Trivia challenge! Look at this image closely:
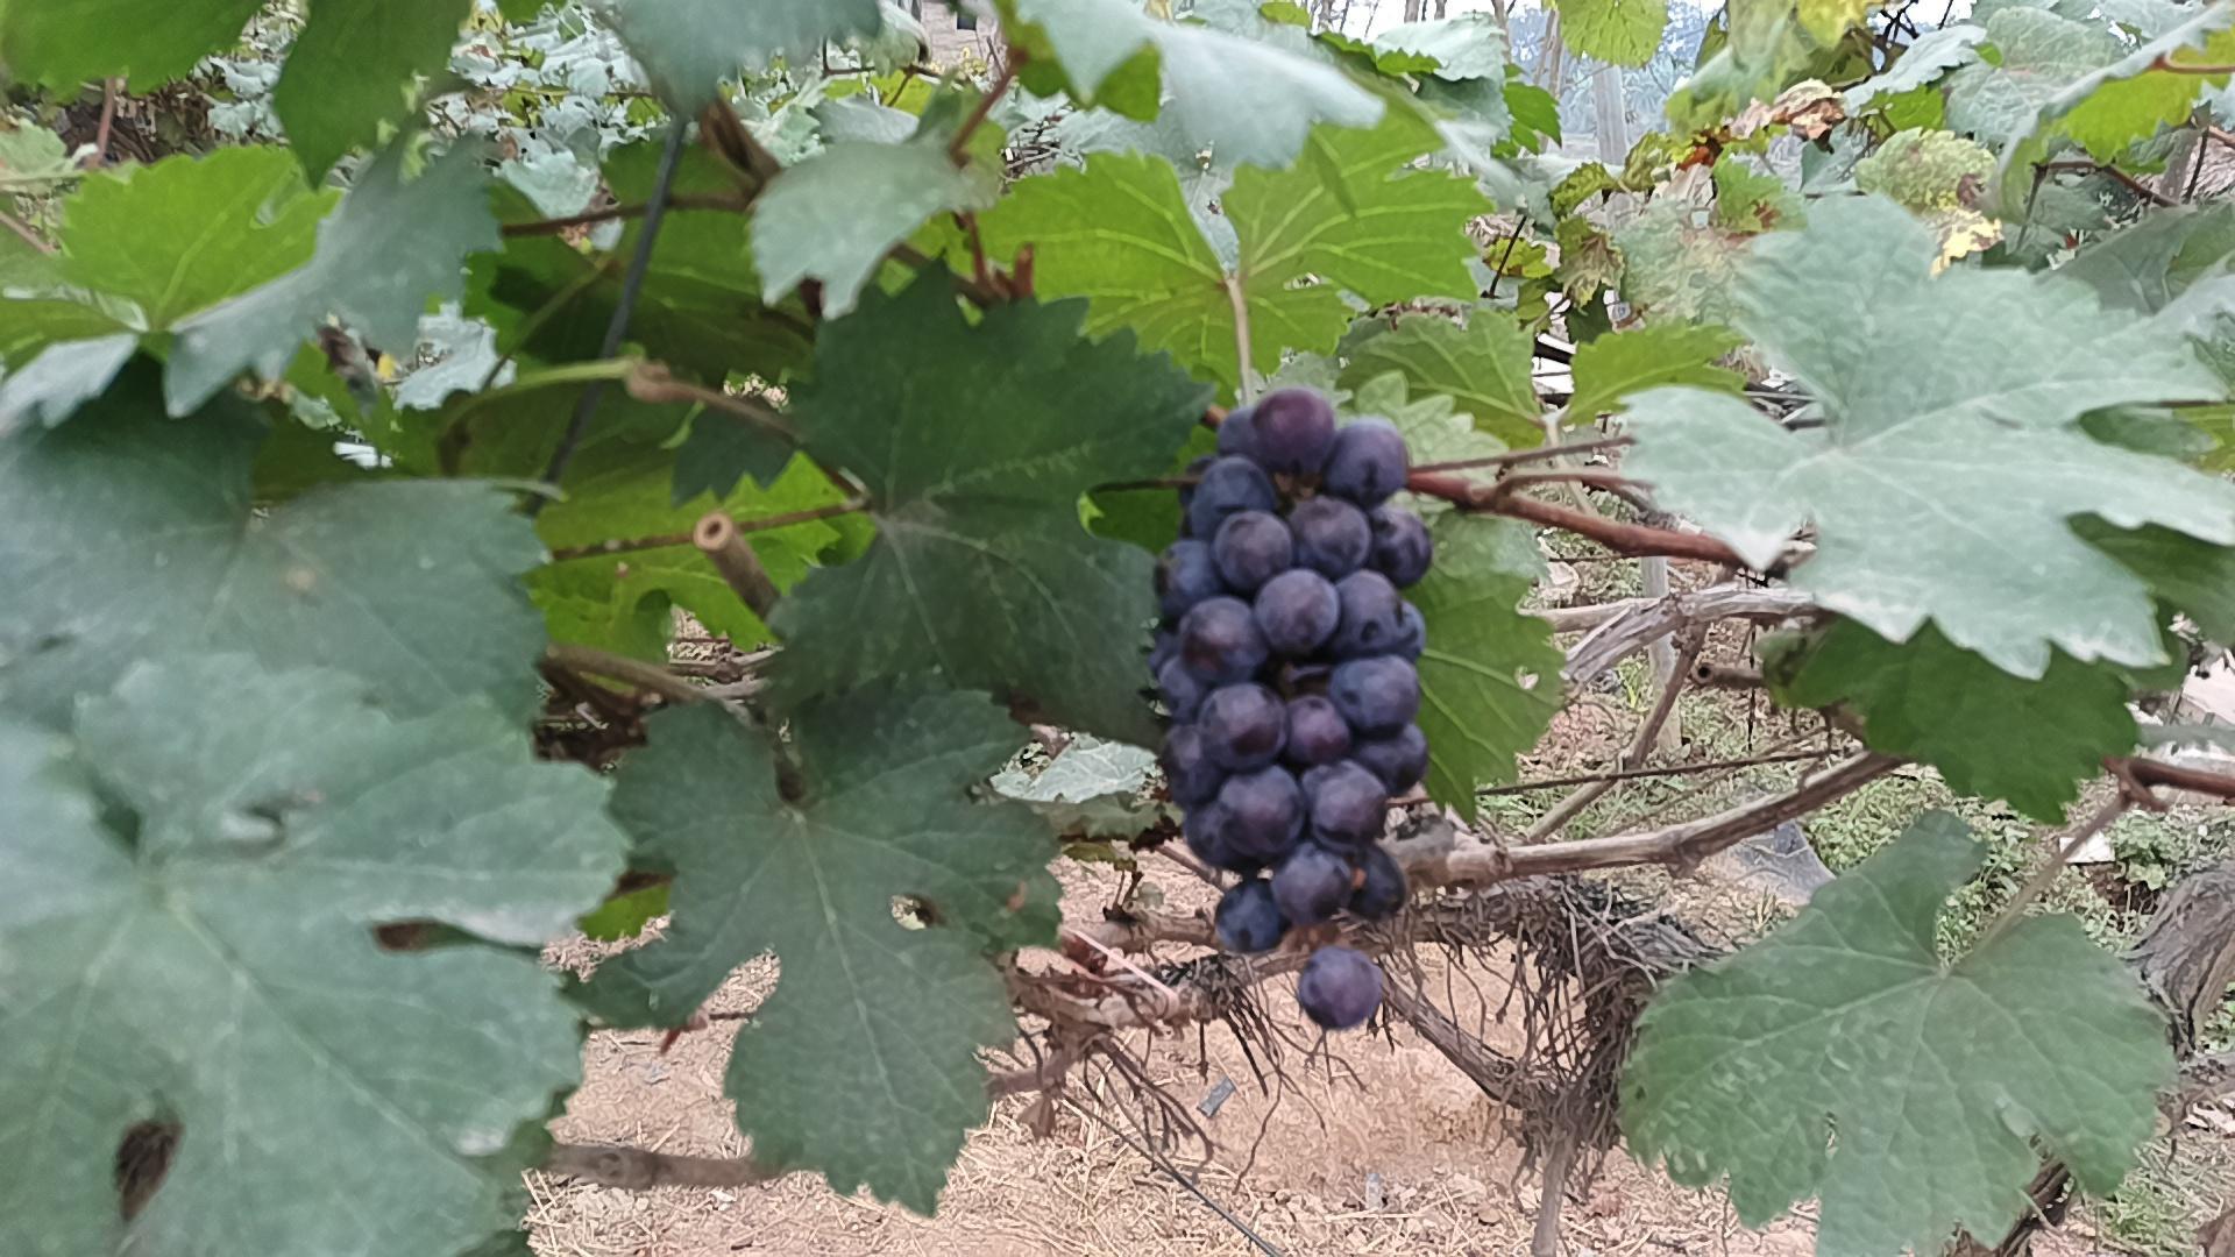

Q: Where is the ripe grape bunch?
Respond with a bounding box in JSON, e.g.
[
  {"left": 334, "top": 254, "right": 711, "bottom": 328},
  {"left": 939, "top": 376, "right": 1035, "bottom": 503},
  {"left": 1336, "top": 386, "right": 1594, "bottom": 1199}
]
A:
[{"left": 1161, "top": 388, "right": 1439, "bottom": 1027}]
